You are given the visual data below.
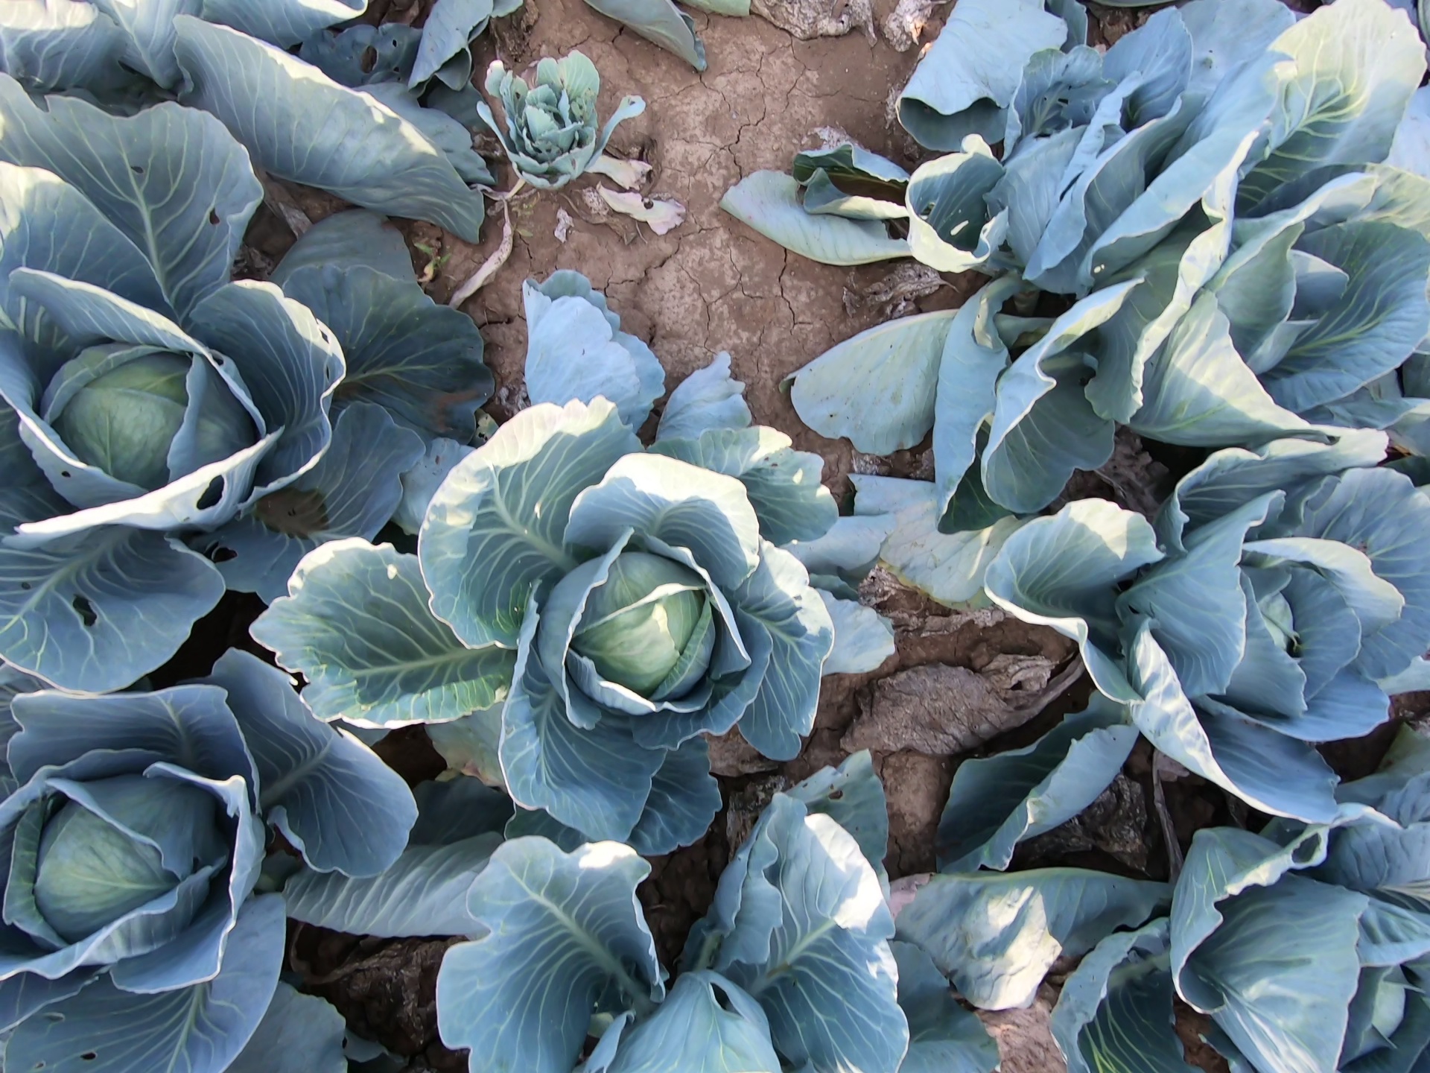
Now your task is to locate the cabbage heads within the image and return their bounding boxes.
[1268,925,1410,1060]
[1178,571,1295,700]
[559,551,715,694]
[45,344,248,514]
[1006,127,1139,282]
[31,773,209,940]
